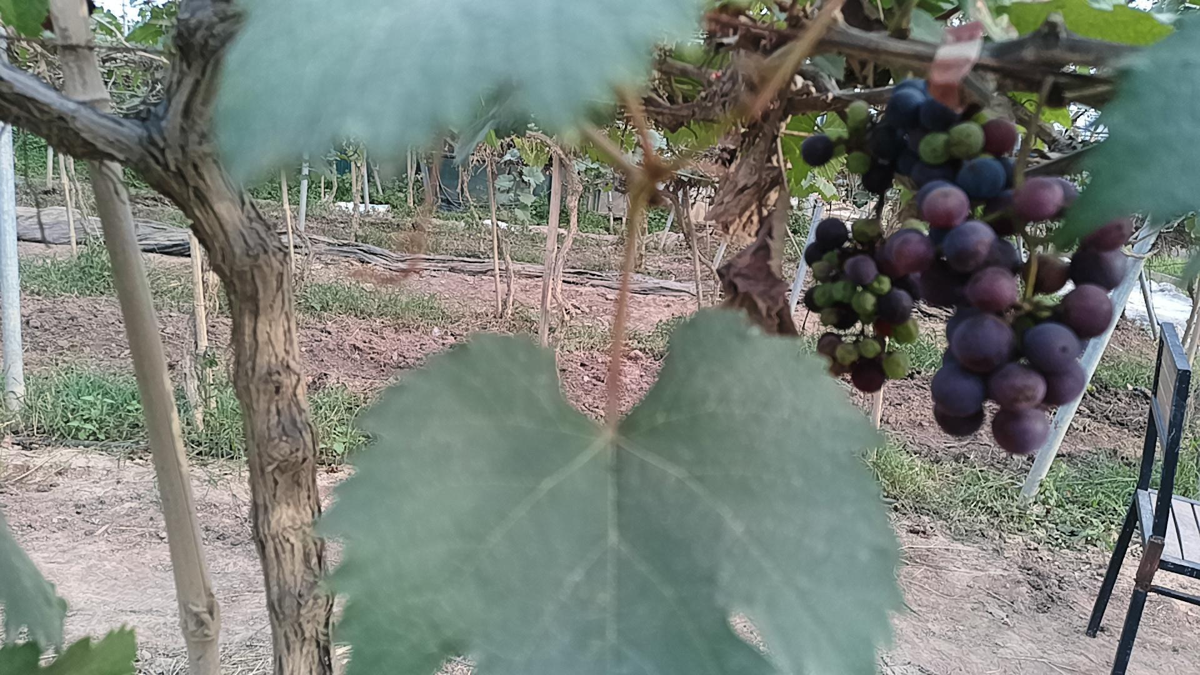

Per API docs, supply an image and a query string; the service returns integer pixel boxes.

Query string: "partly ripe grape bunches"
[885,156,1132,452]
[799,79,1020,393]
